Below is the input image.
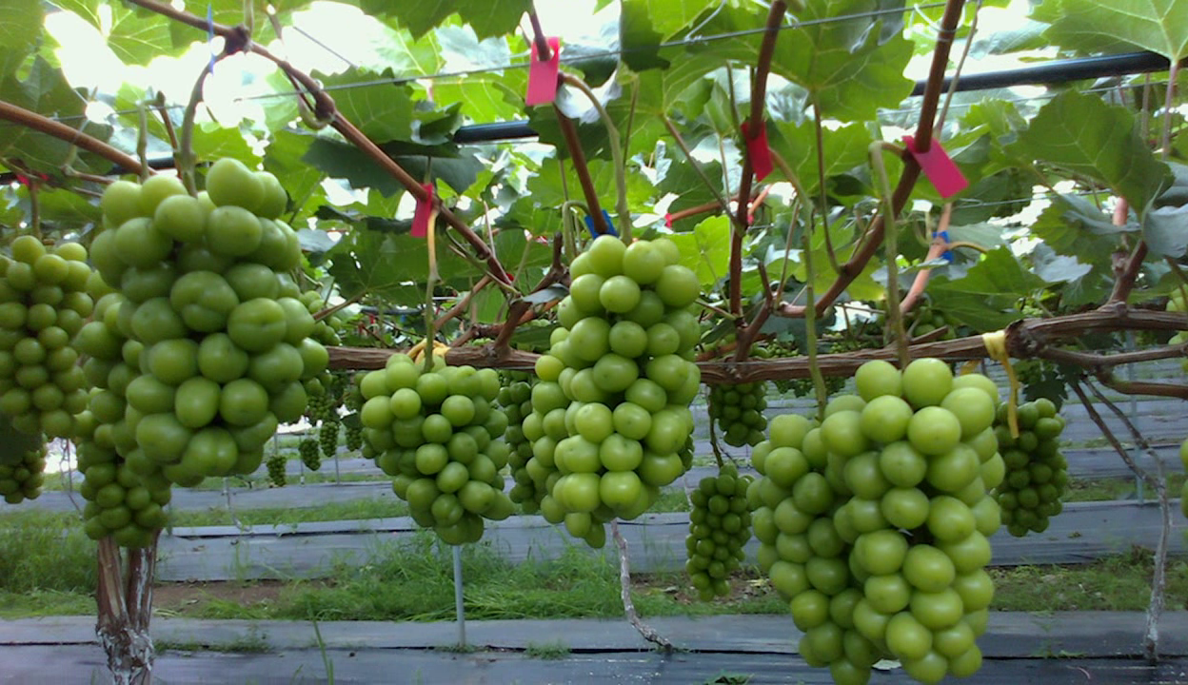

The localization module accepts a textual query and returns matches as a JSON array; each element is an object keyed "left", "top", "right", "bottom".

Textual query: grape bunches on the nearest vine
[
  {"left": 524, "top": 235, "right": 703, "bottom": 550},
  {"left": 820, "top": 359, "right": 1006, "bottom": 684},
  {"left": 0, "top": 236, "right": 95, "bottom": 438},
  {"left": 359, "top": 354, "right": 511, "bottom": 544},
  {"left": 748, "top": 415, "right": 883, "bottom": 684},
  {"left": 90, "top": 158, "right": 328, "bottom": 489},
  {"left": 75, "top": 270, "right": 170, "bottom": 548}
]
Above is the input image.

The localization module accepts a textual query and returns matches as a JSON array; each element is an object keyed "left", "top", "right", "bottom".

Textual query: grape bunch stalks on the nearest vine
[
  {"left": 173, "top": 49, "right": 229, "bottom": 196},
  {"left": 28, "top": 181, "right": 43, "bottom": 241},
  {"left": 782, "top": 161, "right": 826, "bottom": 422},
  {"left": 585, "top": 93, "right": 632, "bottom": 244},
  {"left": 866, "top": 140, "right": 909, "bottom": 370},
  {"left": 422, "top": 223, "right": 441, "bottom": 371},
  {"left": 137, "top": 90, "right": 178, "bottom": 181}
]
